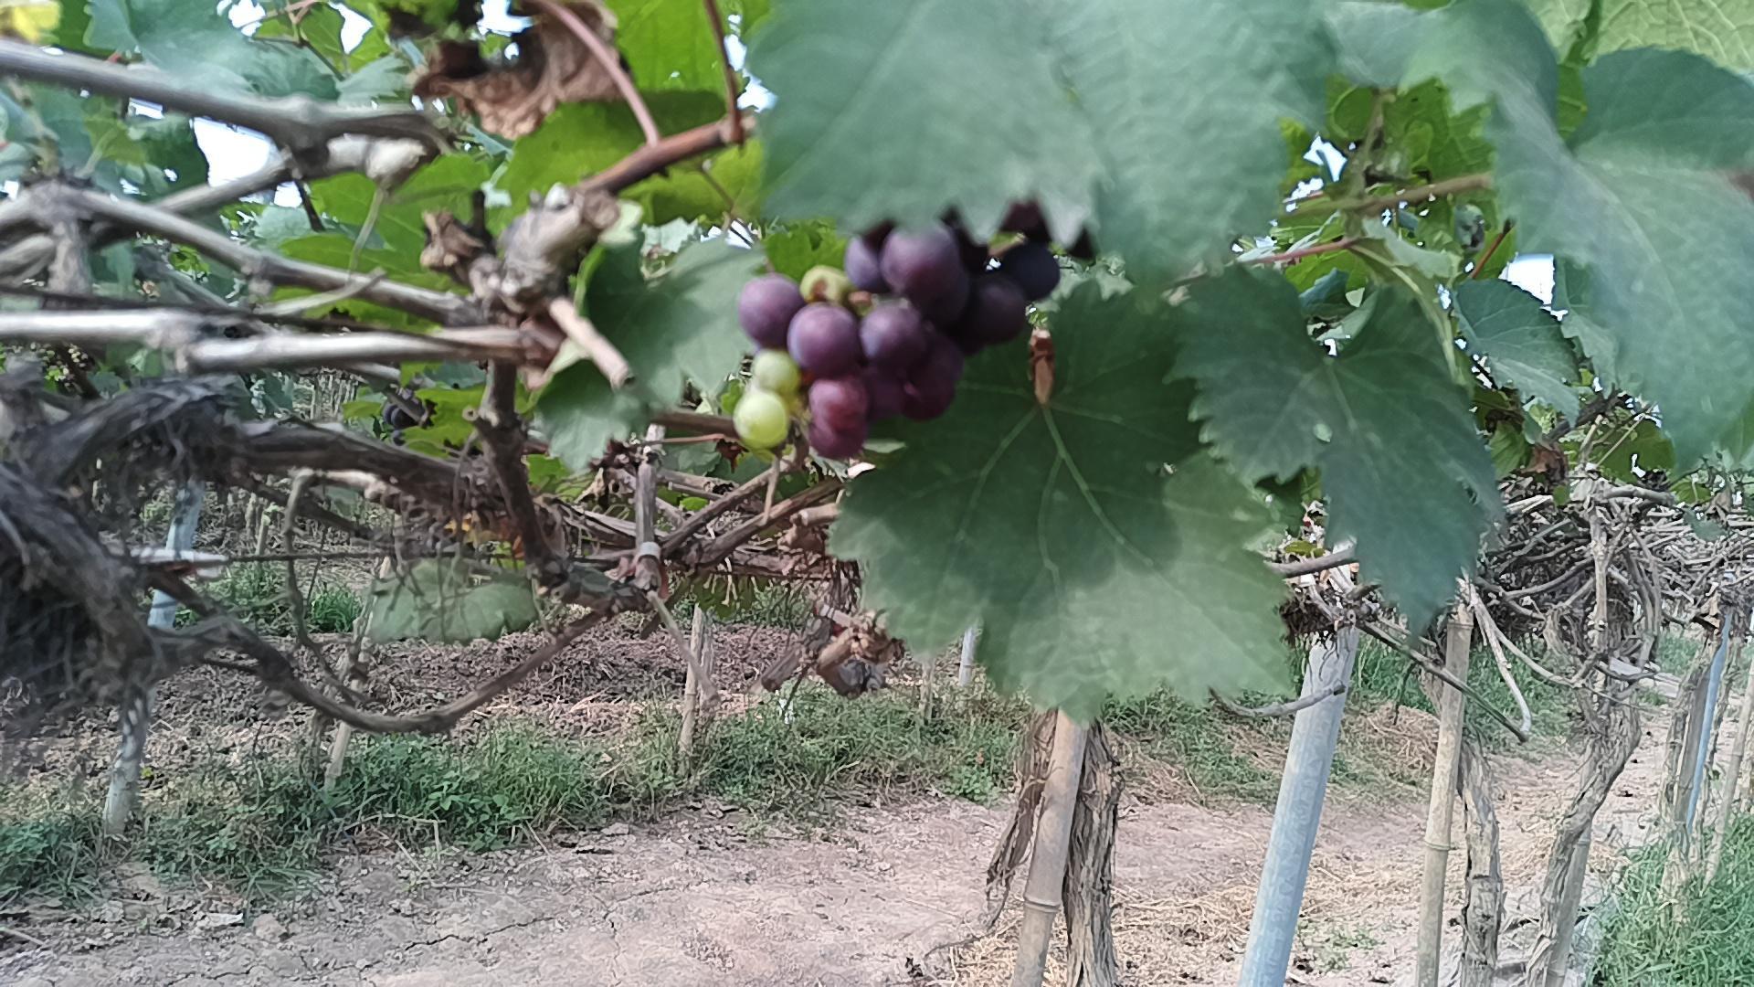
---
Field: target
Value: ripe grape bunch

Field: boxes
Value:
[379,387,436,445]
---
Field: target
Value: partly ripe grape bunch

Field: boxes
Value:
[735,203,1060,460]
